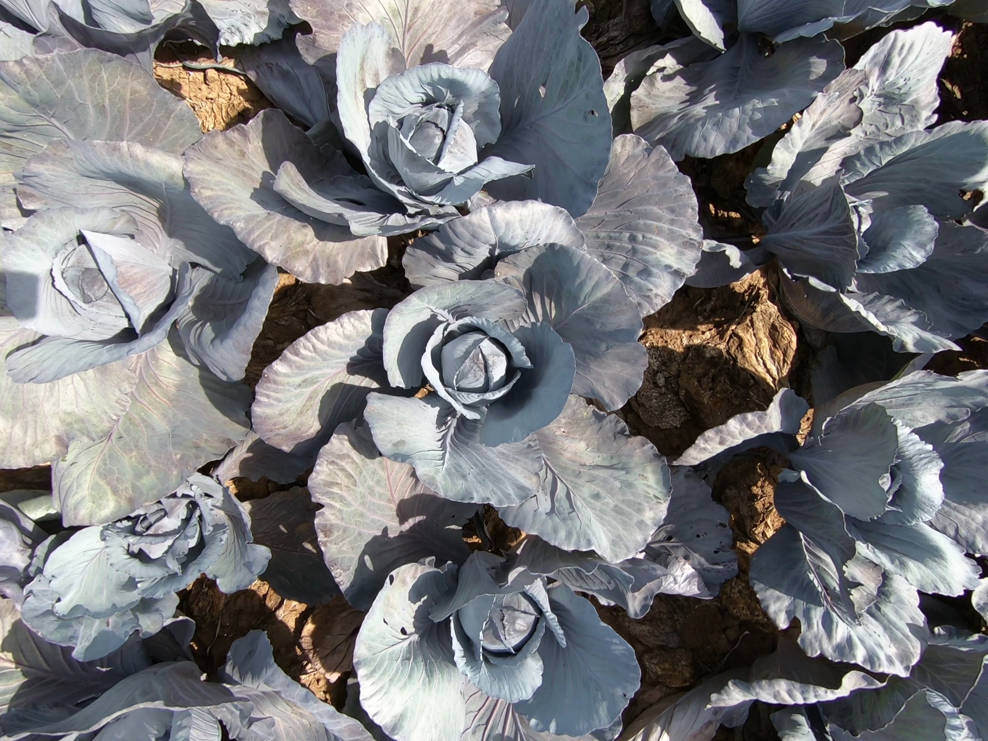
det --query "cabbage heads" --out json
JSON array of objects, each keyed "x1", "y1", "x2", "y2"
[
  {"x1": 817, "y1": 444, "x2": 897, "y2": 508},
  {"x1": 811, "y1": 192, "x2": 871, "y2": 248},
  {"x1": 457, "y1": 568, "x2": 543, "y2": 655},
  {"x1": 95, "y1": 680, "x2": 222, "y2": 739},
  {"x1": 133, "y1": 493, "x2": 205, "y2": 557},
  {"x1": 396, "y1": 107, "x2": 478, "y2": 189},
  {"x1": 443, "y1": 332, "x2": 507, "y2": 407},
  {"x1": 55, "y1": 239, "x2": 169, "y2": 327}
]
